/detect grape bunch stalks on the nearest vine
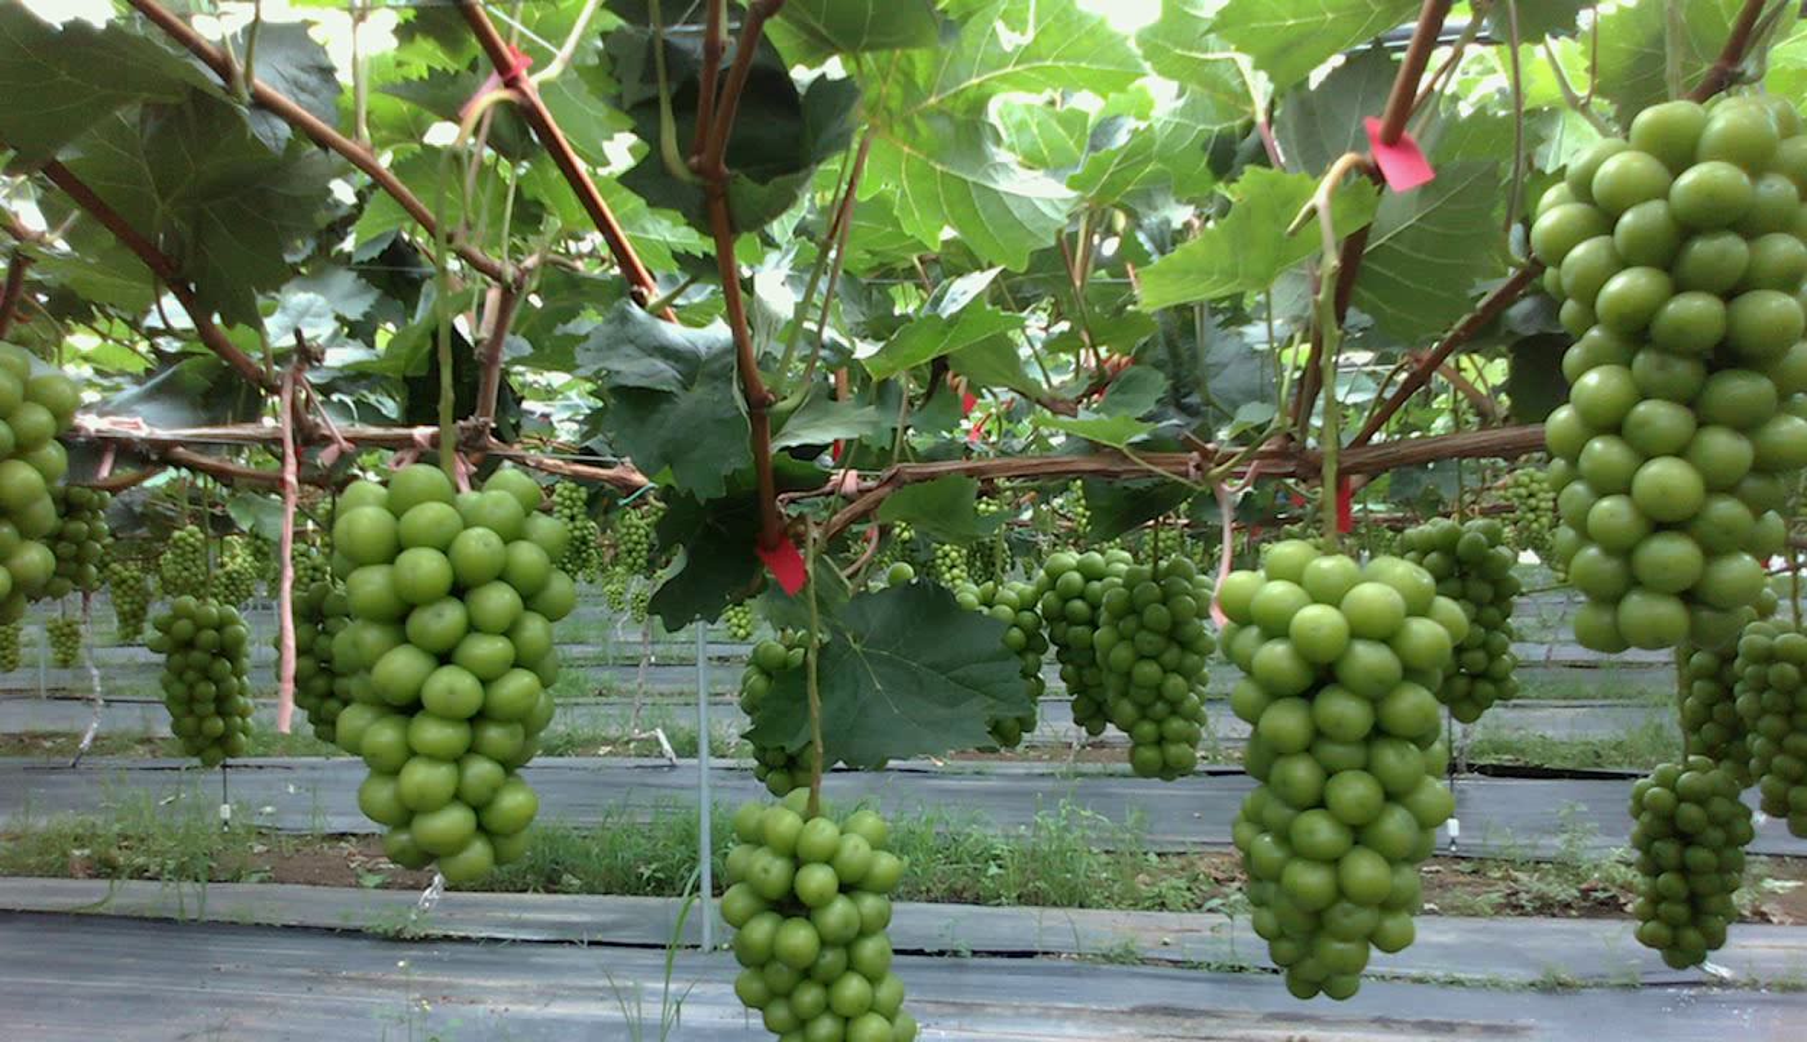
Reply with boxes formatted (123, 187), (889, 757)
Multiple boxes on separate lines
(799, 515), (824, 822)
(1662, 0), (1685, 101)
(433, 88), (523, 489)
(1309, 151), (1370, 553)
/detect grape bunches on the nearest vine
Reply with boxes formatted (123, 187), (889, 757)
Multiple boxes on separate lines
(718, 787), (917, 1041)
(1218, 538), (1470, 1000)
(332, 463), (578, 881)
(1529, 93), (1806, 654)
